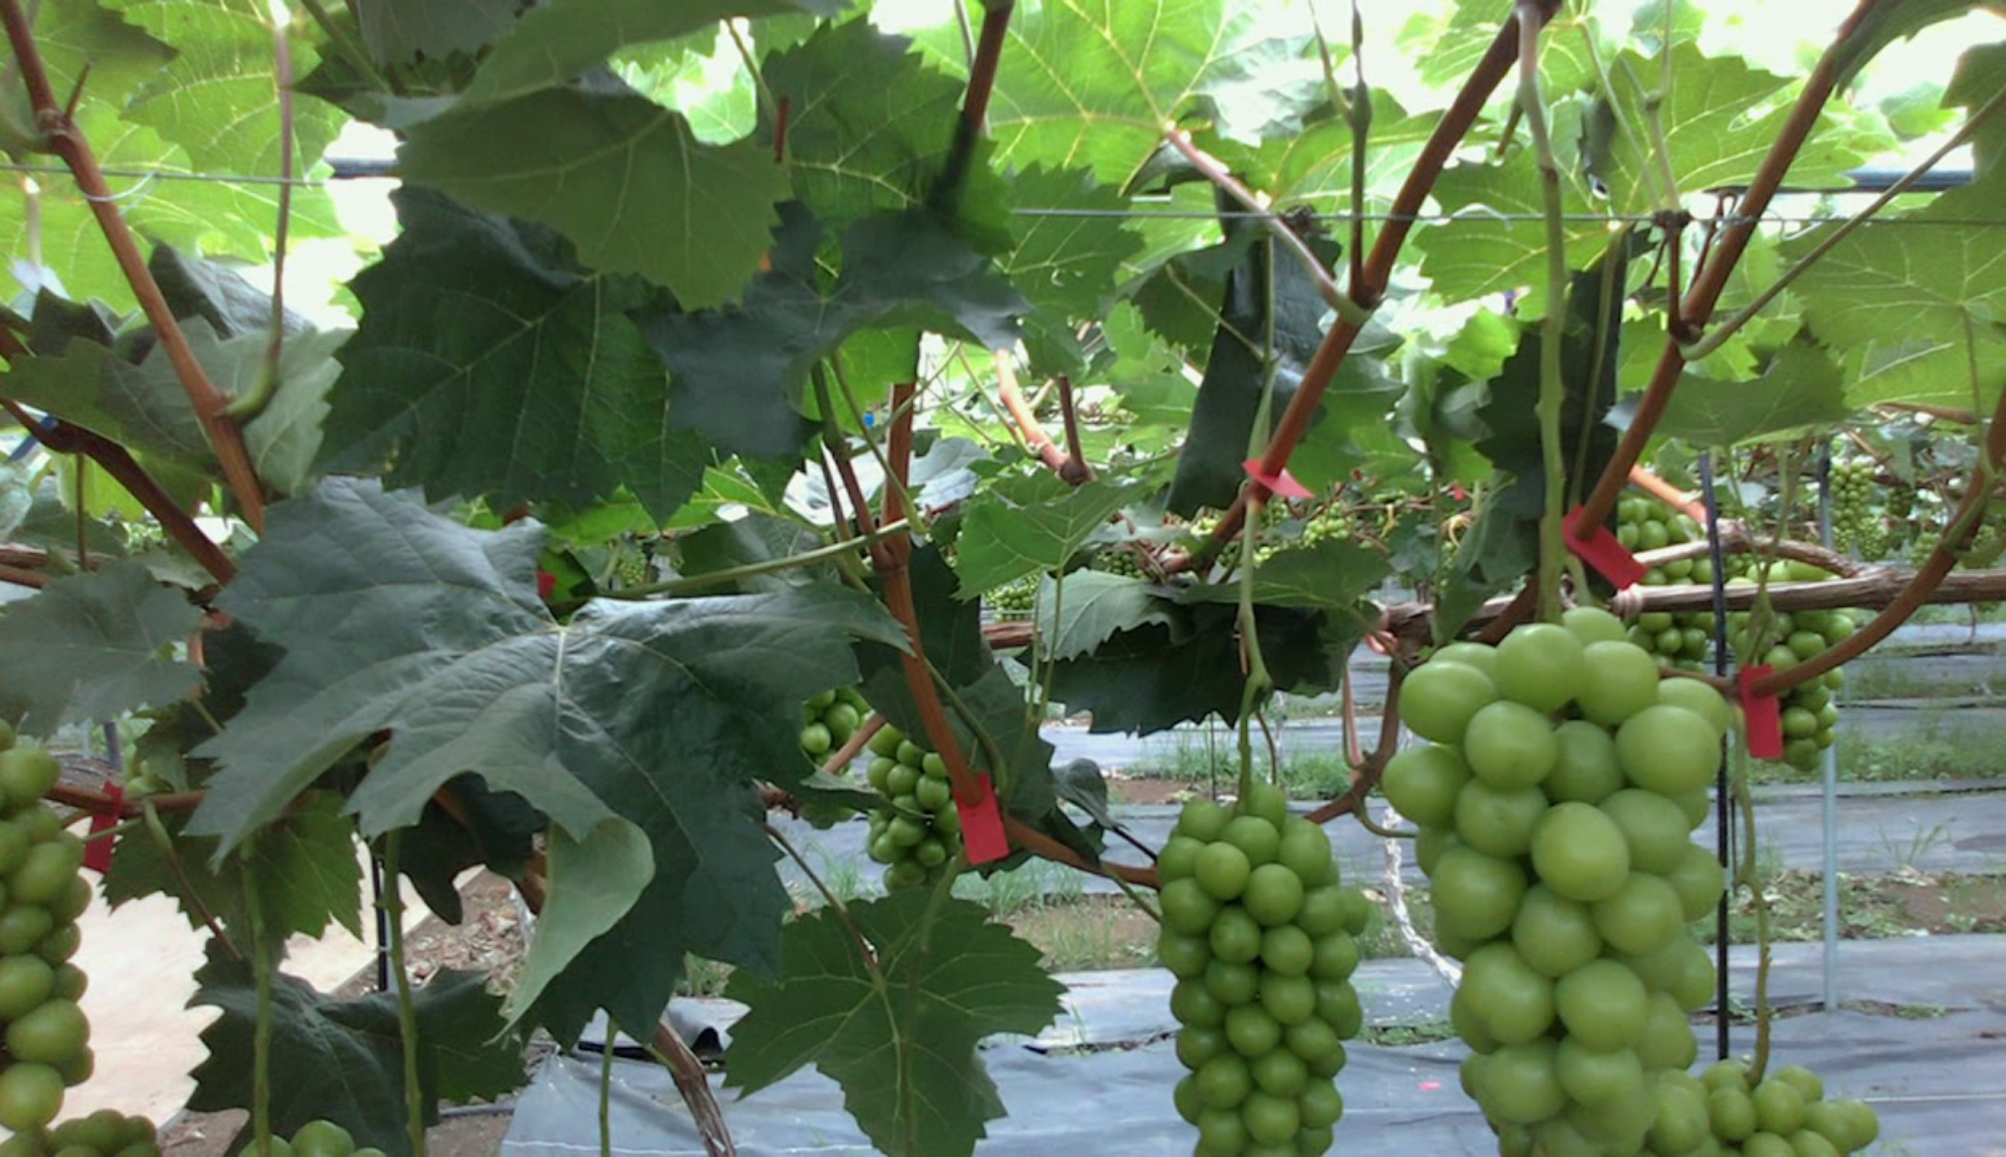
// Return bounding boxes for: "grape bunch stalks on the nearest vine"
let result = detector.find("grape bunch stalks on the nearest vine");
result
[238,844,272,1155]
[1231,503,1263,820]
[1733,701,1770,1098]
[1514,2,1566,627]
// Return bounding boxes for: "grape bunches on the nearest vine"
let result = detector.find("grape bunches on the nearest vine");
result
[236,1120,381,1155]
[1381,606,1731,1154]
[1641,1056,1881,1154]
[1156,784,1371,1155]
[0,718,96,1130]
